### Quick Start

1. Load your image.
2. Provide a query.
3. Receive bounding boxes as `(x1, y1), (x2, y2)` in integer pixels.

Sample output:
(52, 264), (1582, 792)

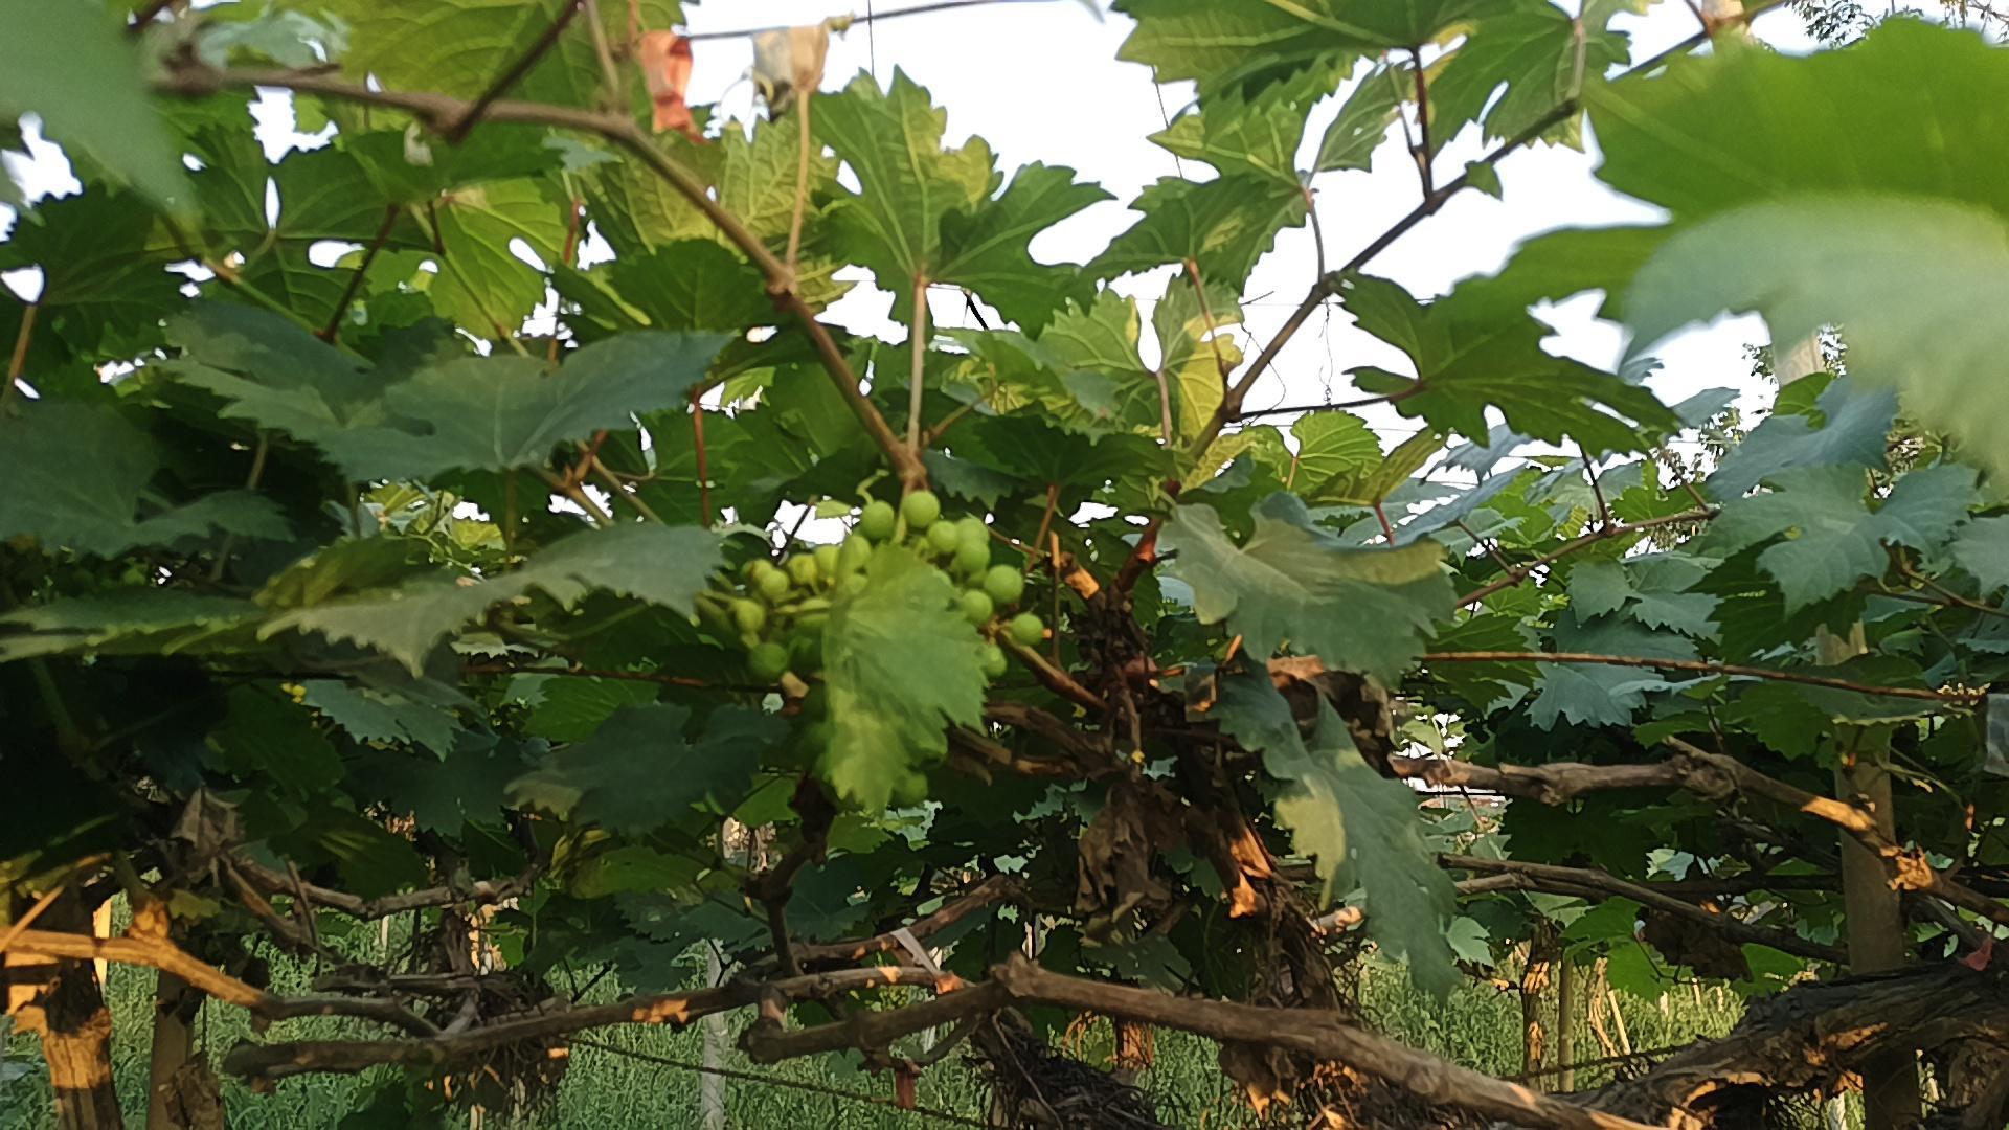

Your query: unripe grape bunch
(699, 492), (1045, 755)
